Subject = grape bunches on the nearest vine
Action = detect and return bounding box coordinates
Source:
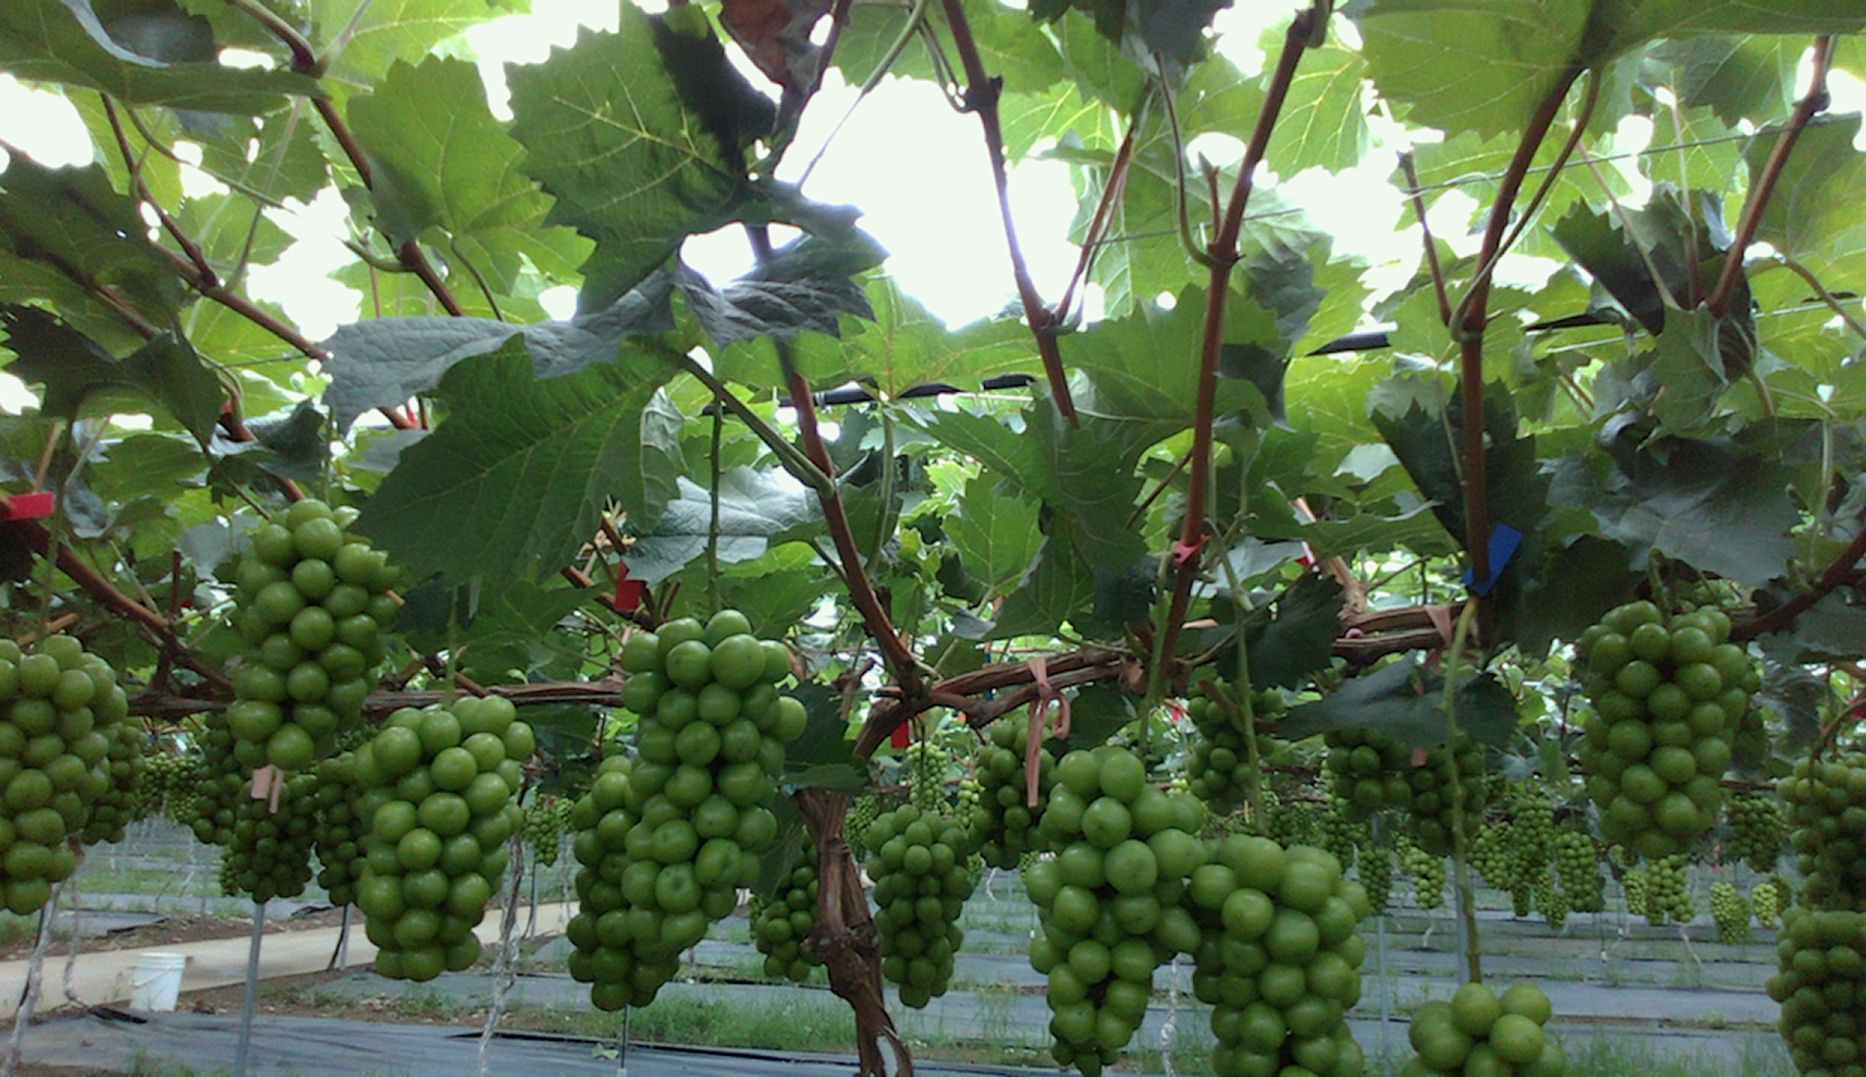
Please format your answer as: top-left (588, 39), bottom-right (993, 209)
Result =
top-left (353, 696), bottom-right (535, 984)
top-left (0, 634), bottom-right (130, 915)
top-left (565, 609), bottom-right (807, 1013)
top-left (226, 498), bottom-right (404, 772)
top-left (1576, 601), bottom-right (1761, 860)
top-left (1024, 746), bottom-right (1210, 1052)
top-left (1392, 981), bottom-right (1577, 1076)
top-left (1178, 832), bottom-right (1370, 1076)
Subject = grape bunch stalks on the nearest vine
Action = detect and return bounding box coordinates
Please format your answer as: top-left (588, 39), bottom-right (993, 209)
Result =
top-left (321, 407), bottom-right (333, 504)
top-left (1139, 549), bottom-right (1174, 757)
top-left (704, 393), bottom-right (727, 618)
top-left (1204, 516), bottom-right (1268, 838)
top-left (443, 583), bottom-right (458, 709)
top-left (31, 414), bottom-right (73, 654)
top-left (1432, 594), bottom-right (1482, 983)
